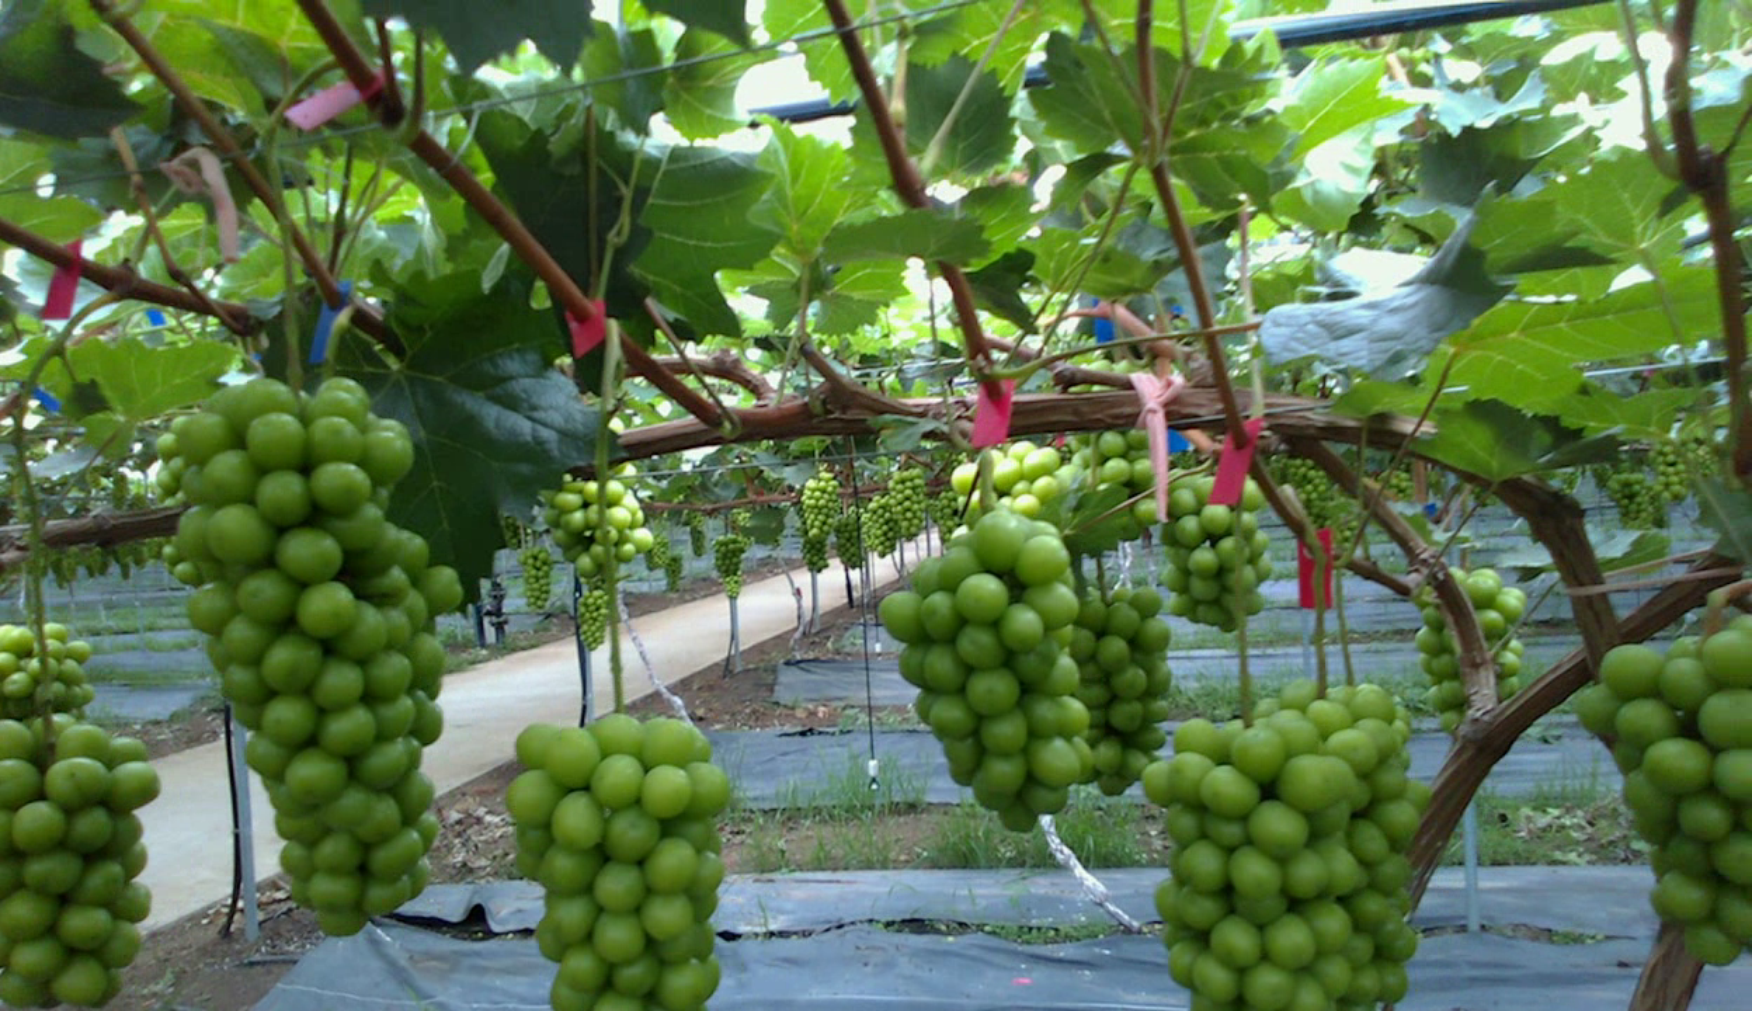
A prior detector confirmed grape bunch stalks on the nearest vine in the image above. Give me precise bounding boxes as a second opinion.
[950,420,993,515]
[13,291,121,768]
[1335,569,1355,685]
[594,317,625,713]
[1694,576,1751,657]
[257,53,340,403]
[1233,498,1254,729]
[1283,484,1327,699]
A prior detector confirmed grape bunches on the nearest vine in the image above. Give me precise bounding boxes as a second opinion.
[173,376,463,938]
[1254,678,1431,1010]
[877,505,1091,833]
[0,713,161,1010]
[505,712,729,1010]
[1574,616,1751,965]
[1143,718,1360,1010]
